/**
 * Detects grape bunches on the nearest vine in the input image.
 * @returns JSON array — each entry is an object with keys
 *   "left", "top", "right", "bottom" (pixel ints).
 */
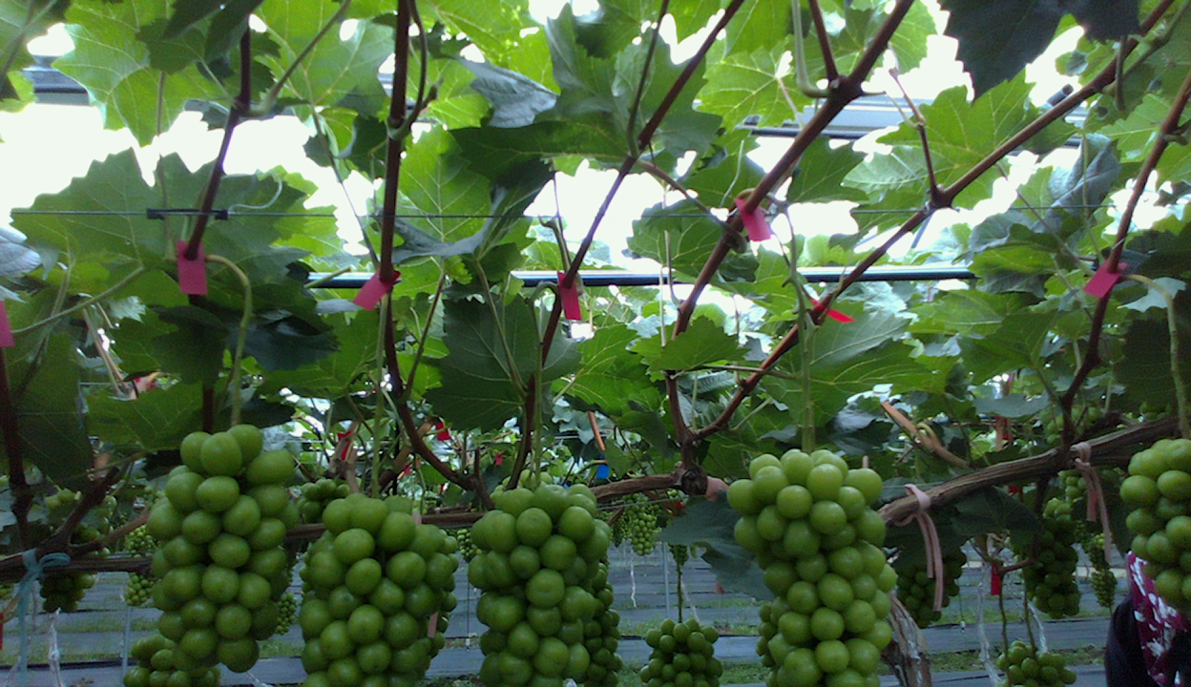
[
  {"left": 143, "top": 424, "right": 300, "bottom": 674},
  {"left": 1121, "top": 437, "right": 1190, "bottom": 601},
  {"left": 727, "top": 449, "right": 899, "bottom": 686},
  {"left": 297, "top": 493, "right": 452, "bottom": 686},
  {"left": 466, "top": 483, "right": 610, "bottom": 686}
]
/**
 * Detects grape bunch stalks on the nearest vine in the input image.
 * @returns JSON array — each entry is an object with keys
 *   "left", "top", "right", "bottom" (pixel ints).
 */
[
  {"left": 1130, "top": 274, "right": 1190, "bottom": 439},
  {"left": 371, "top": 300, "right": 387, "bottom": 496},
  {"left": 215, "top": 256, "right": 252, "bottom": 425},
  {"left": 767, "top": 194, "right": 815, "bottom": 452},
  {"left": 530, "top": 283, "right": 550, "bottom": 486}
]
